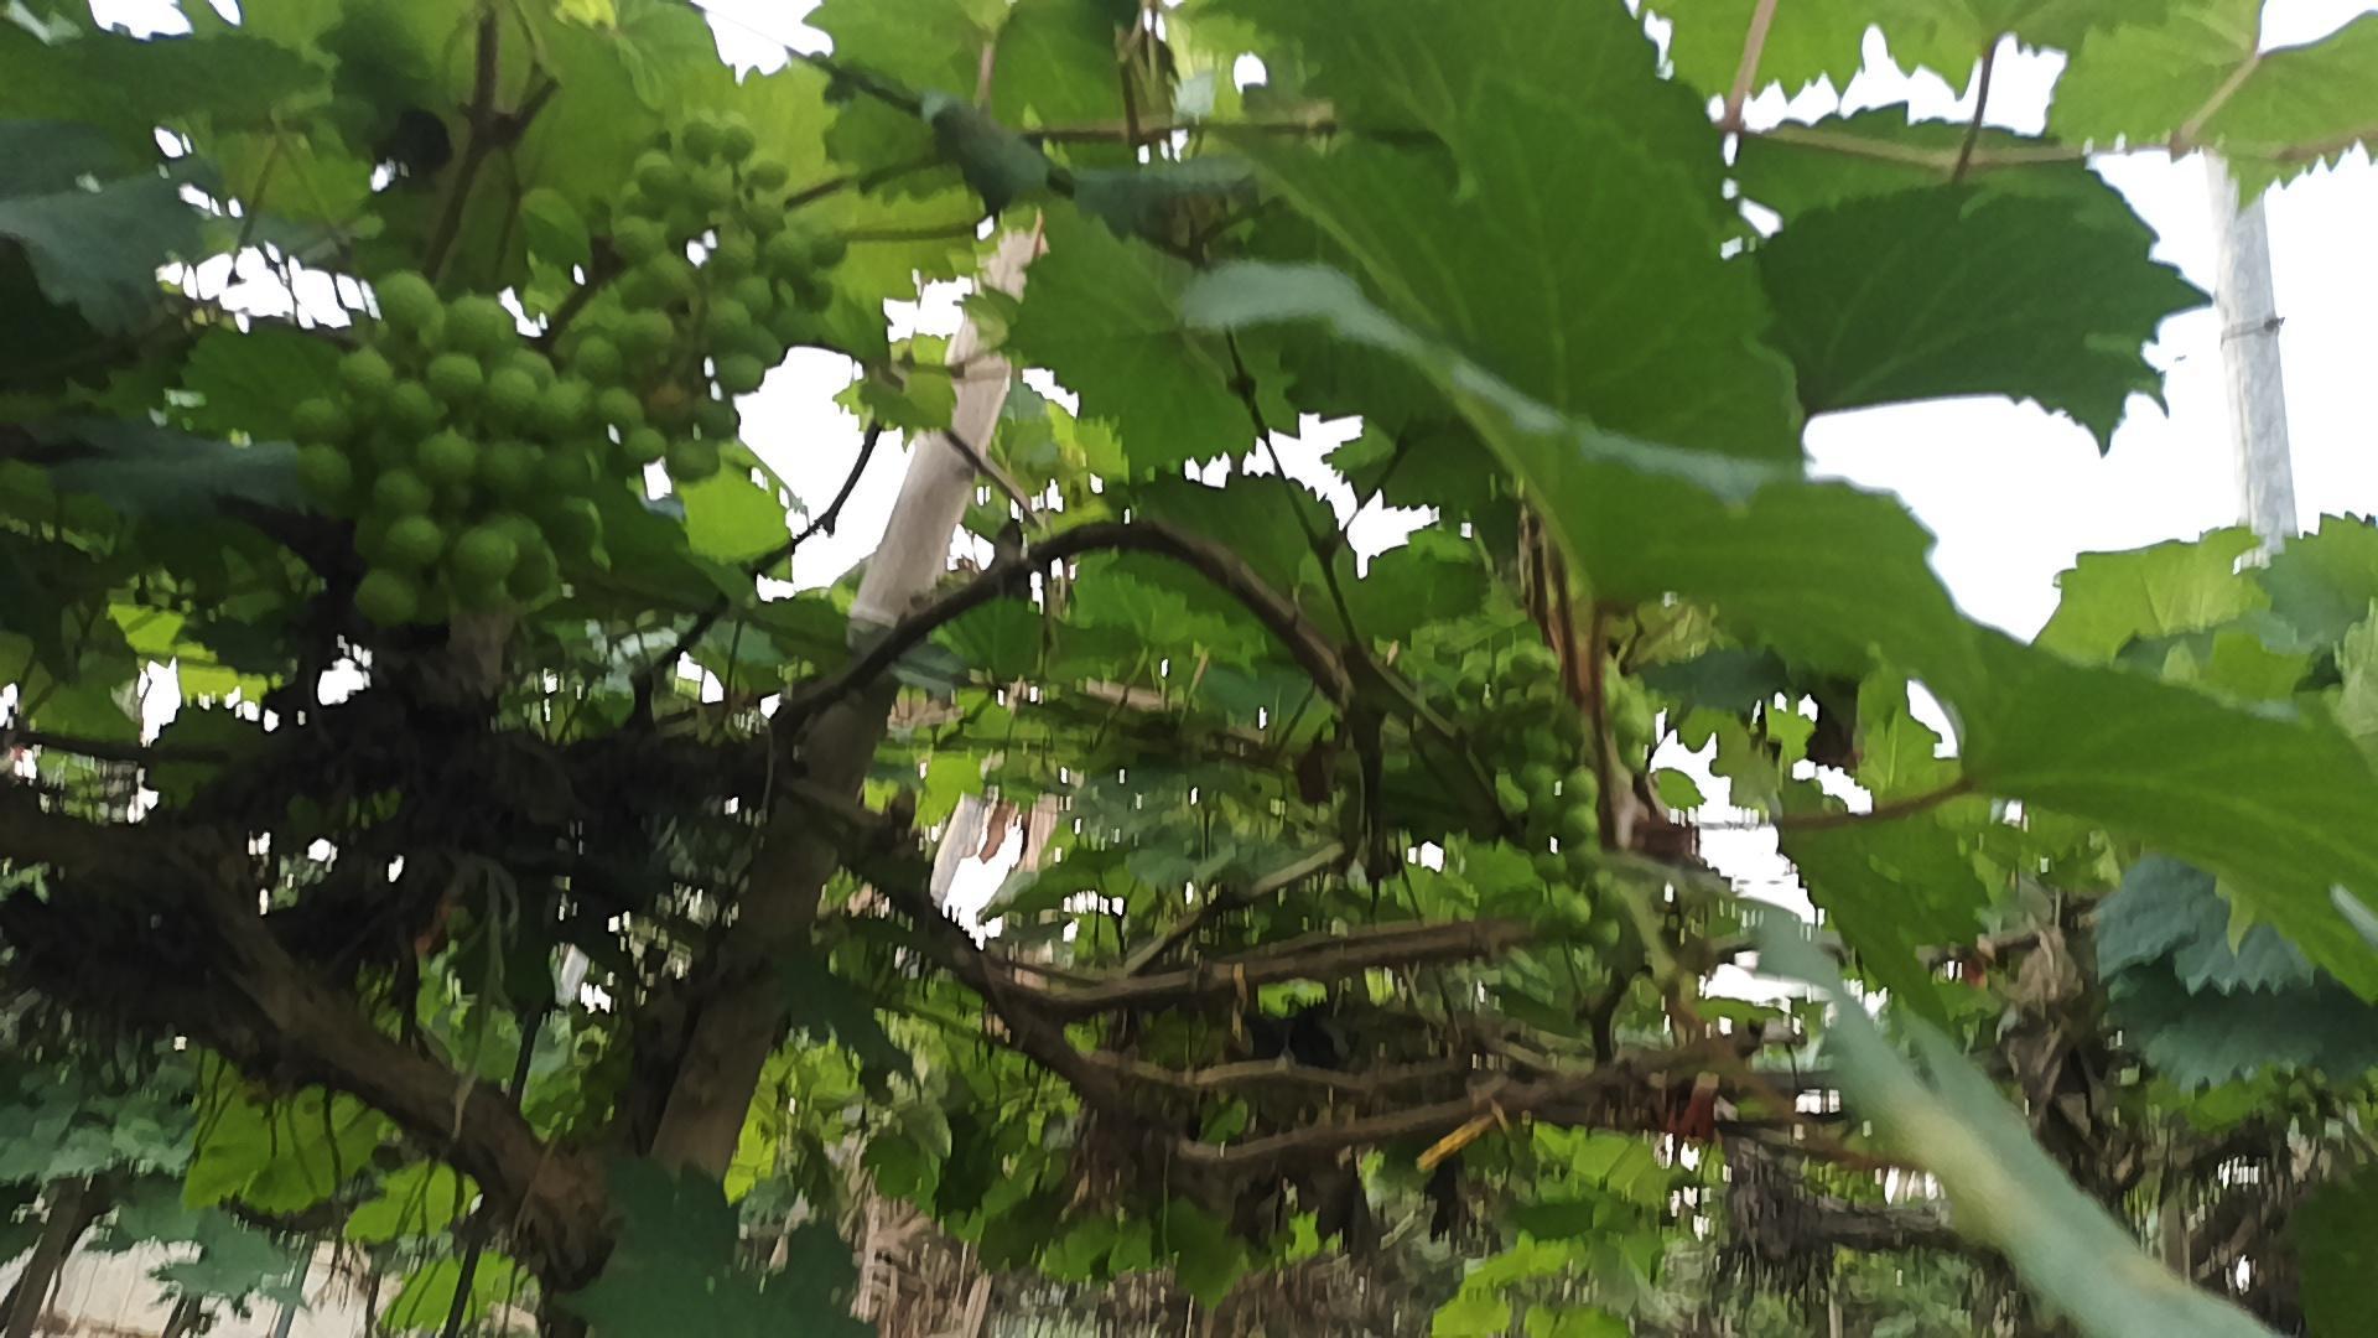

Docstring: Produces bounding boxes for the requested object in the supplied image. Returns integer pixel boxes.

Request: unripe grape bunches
[1421,621,1671,979]
[290,123,836,626]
